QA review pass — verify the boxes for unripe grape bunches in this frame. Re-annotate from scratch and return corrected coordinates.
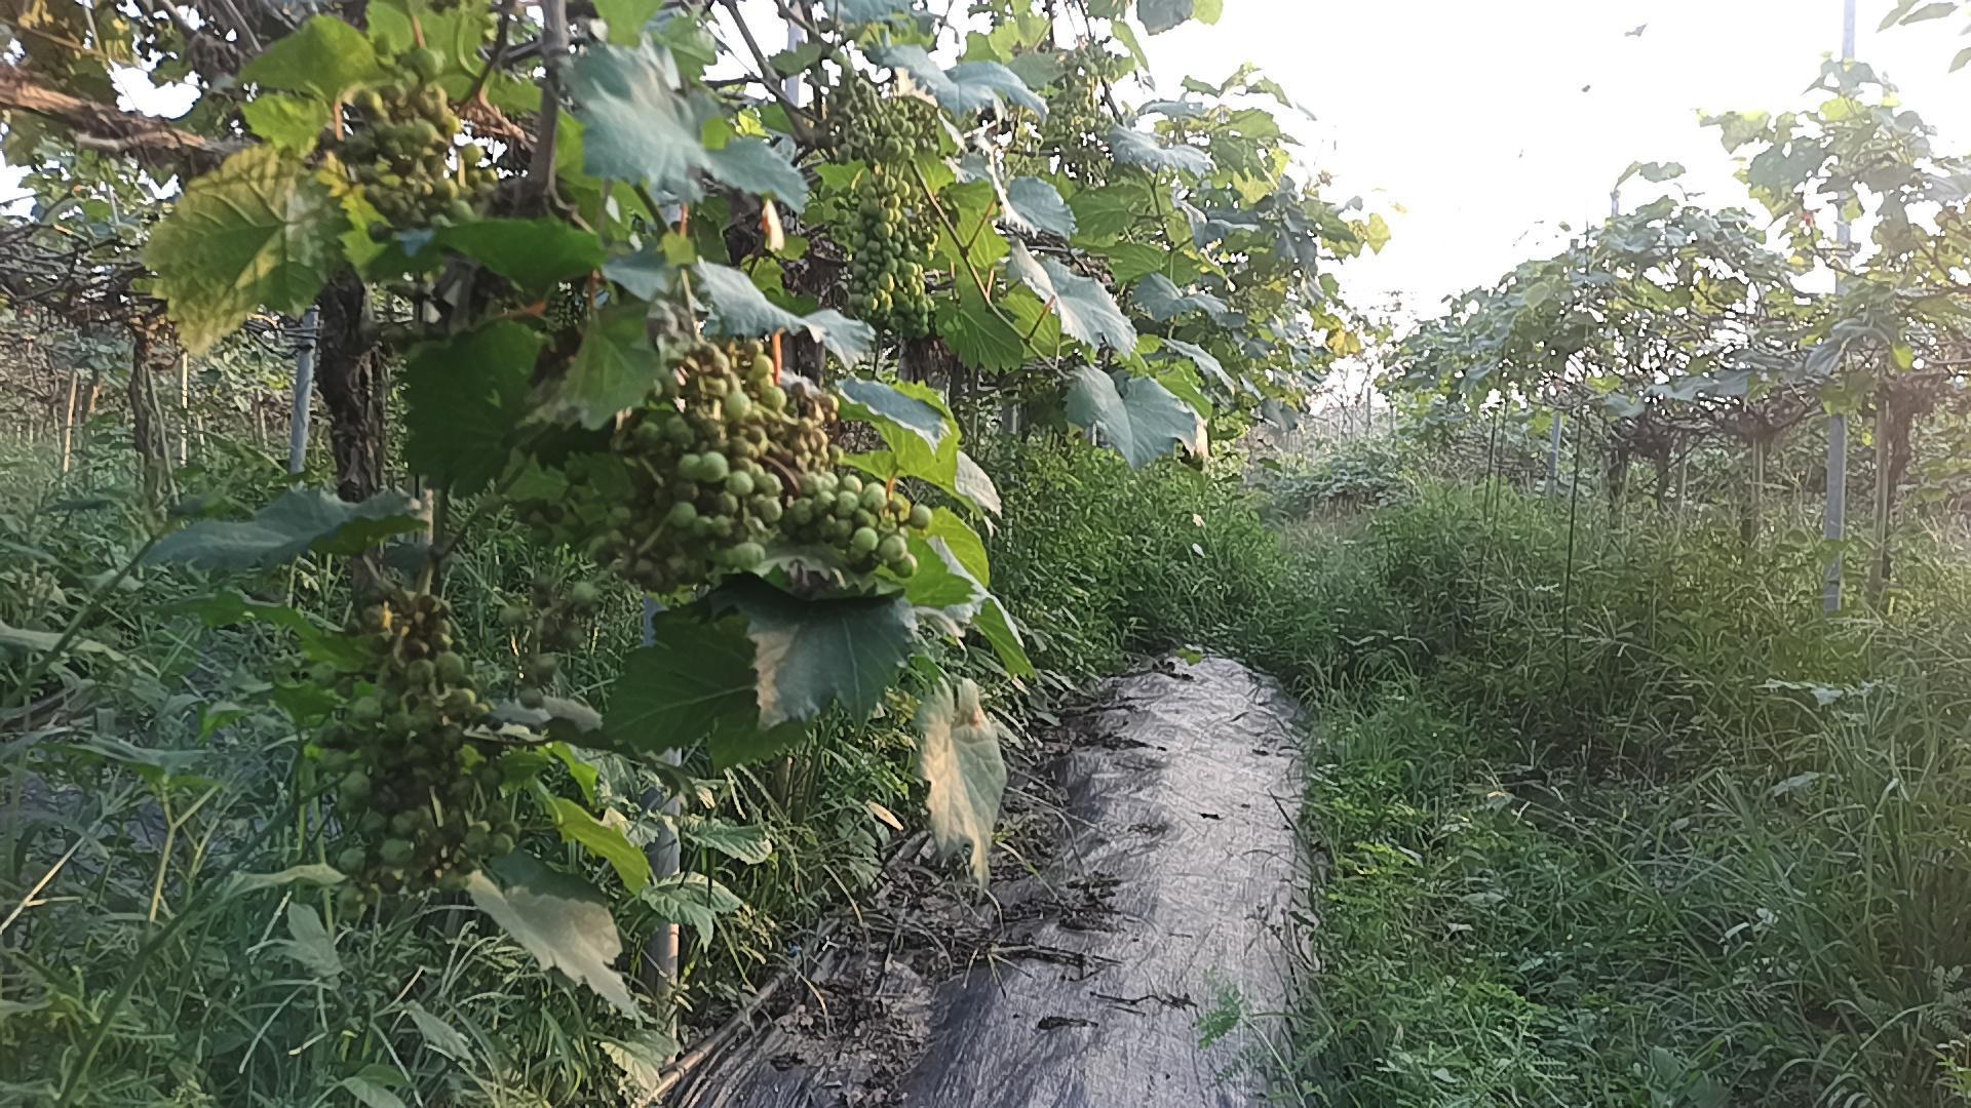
[830,74,940,339]
[511,341,927,594]
[316,570,515,909]
[337,83,497,240]
[518,570,601,706]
